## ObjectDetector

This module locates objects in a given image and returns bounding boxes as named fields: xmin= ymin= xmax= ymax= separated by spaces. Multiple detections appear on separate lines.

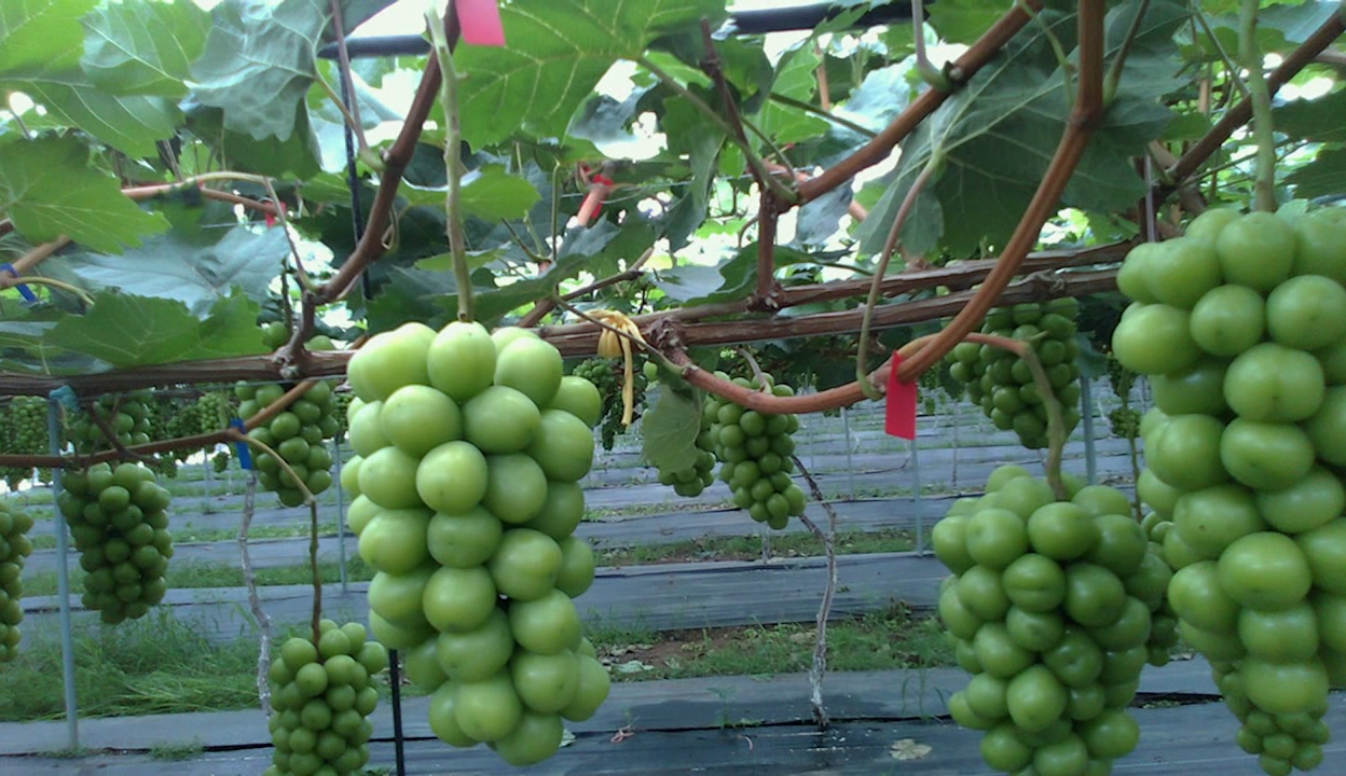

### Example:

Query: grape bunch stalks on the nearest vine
xmin=429 ymin=11 xmax=471 ymax=318
xmin=897 ymin=332 xmax=1071 ymax=497
xmin=1241 ymin=0 xmax=1277 ymax=206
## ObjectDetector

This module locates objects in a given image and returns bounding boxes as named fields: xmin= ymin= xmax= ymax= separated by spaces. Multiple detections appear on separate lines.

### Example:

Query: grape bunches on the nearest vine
xmin=341 ymin=322 xmax=614 ymax=766
xmin=929 ymin=467 xmax=1171 ymax=775
xmin=1111 ymin=205 xmax=1345 ymax=715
